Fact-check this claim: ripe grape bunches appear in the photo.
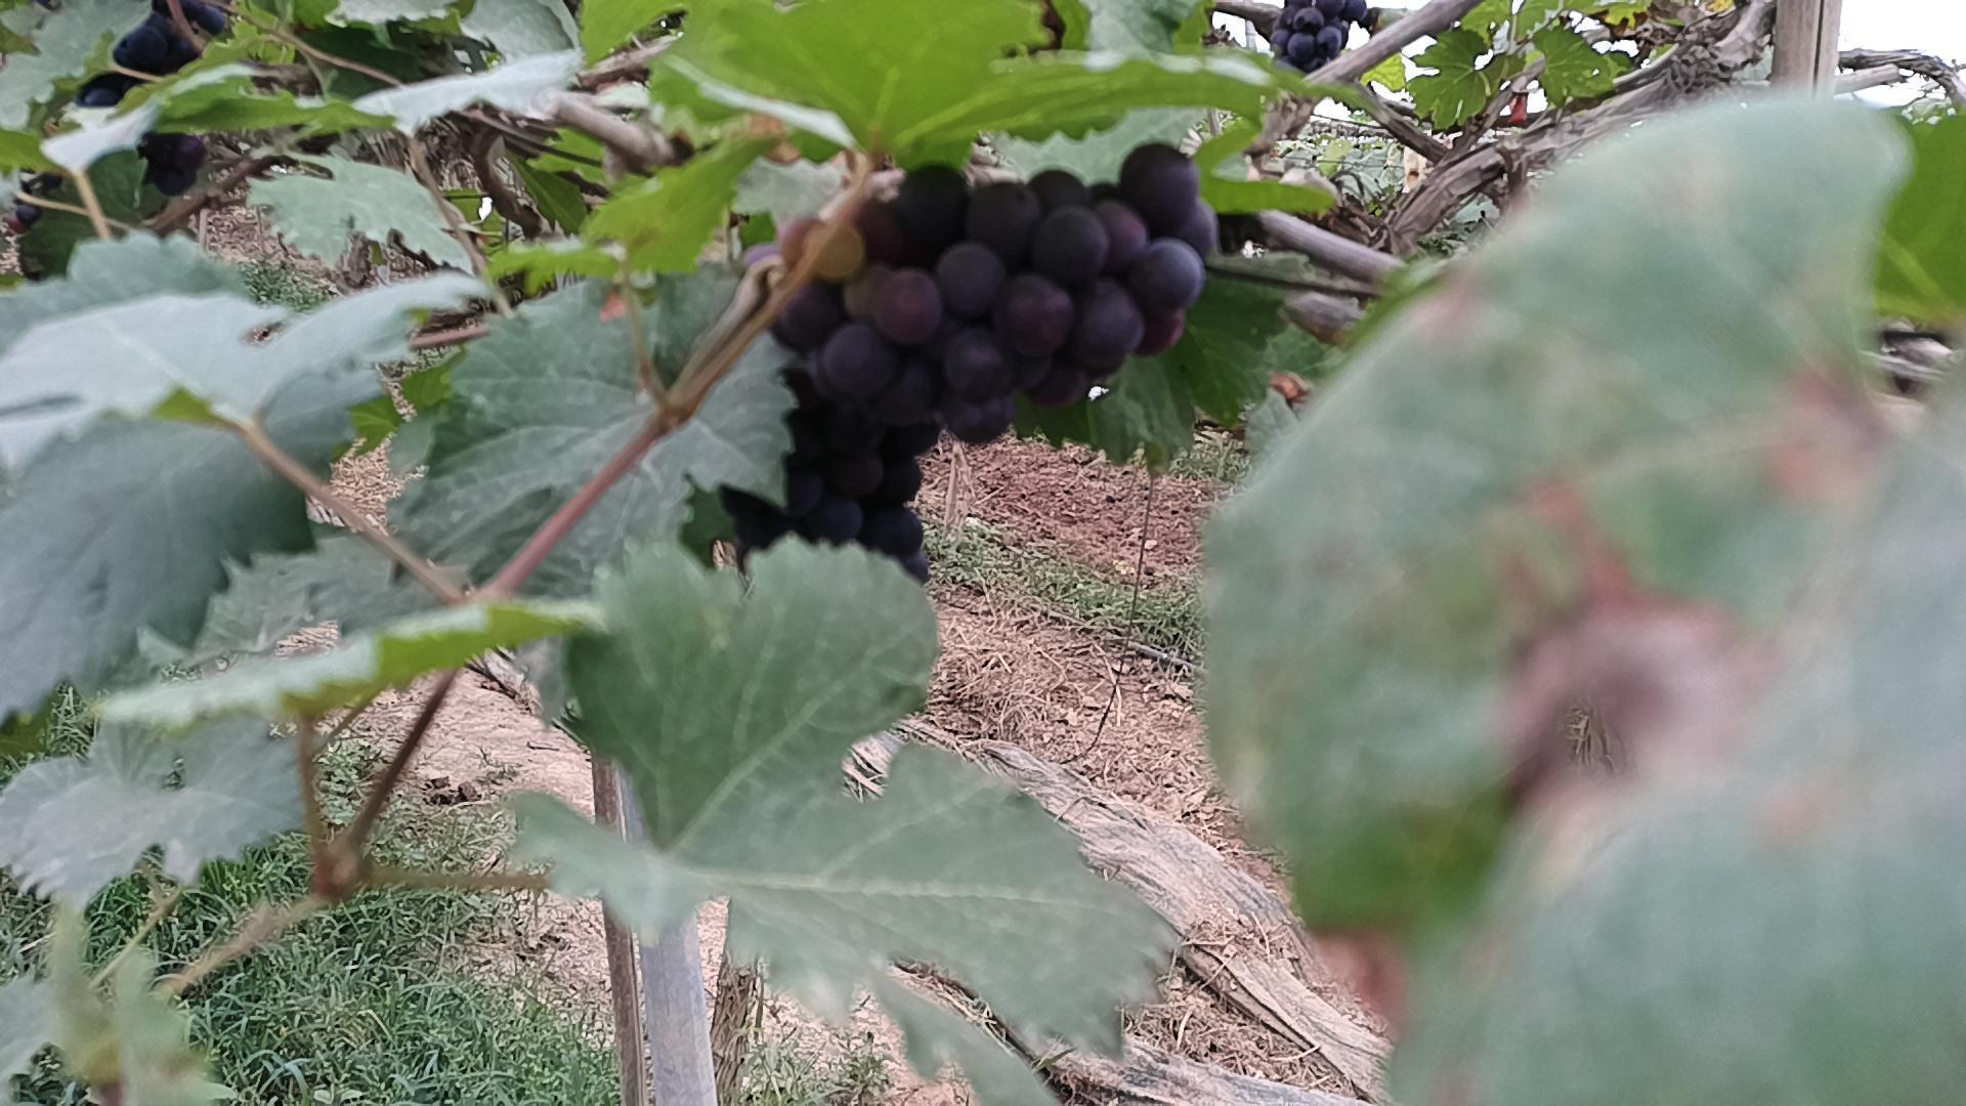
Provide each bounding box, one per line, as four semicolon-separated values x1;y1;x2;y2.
723;143;1217;581
1266;0;1372;73
14;0;226;225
